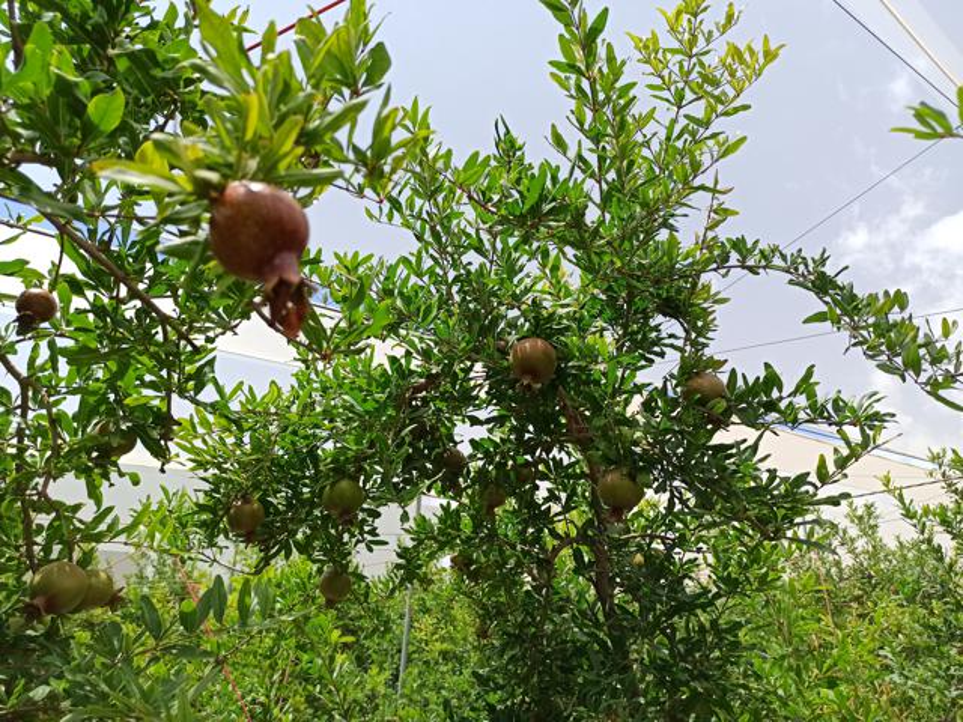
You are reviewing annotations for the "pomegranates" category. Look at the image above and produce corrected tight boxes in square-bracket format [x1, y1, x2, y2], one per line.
[209, 179, 319, 340]
[597, 469, 641, 520]
[481, 486, 507, 516]
[227, 498, 265, 548]
[12, 560, 89, 627]
[322, 478, 364, 529]
[320, 569, 351, 606]
[11, 287, 57, 335]
[81, 569, 125, 614]
[683, 372, 725, 406]
[510, 337, 555, 396]
[433, 450, 466, 492]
